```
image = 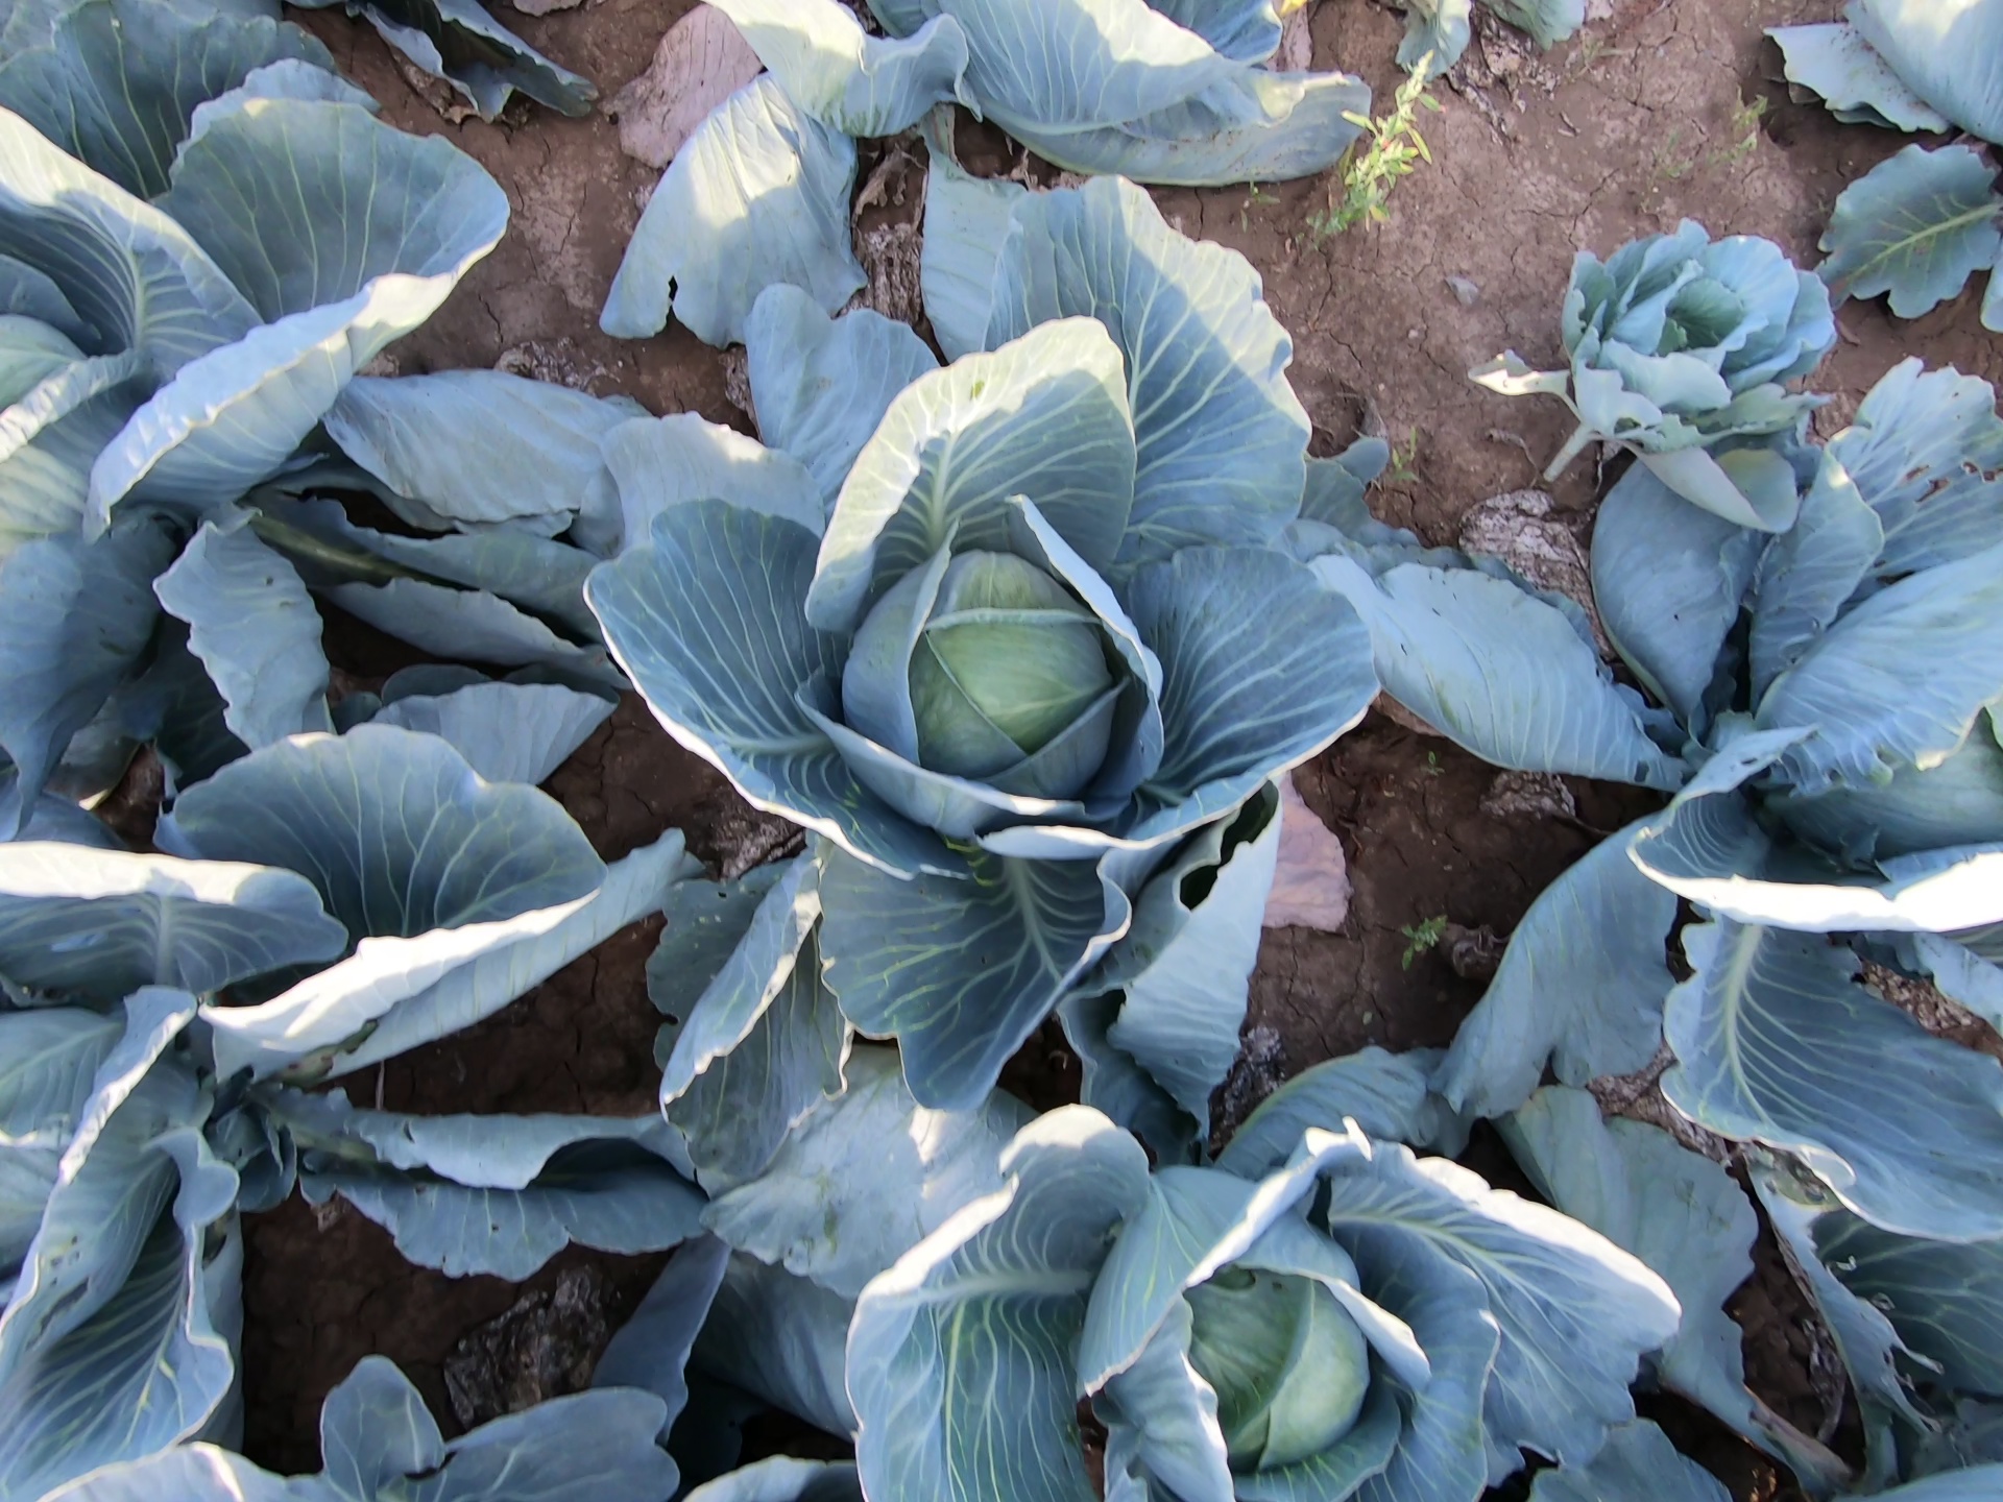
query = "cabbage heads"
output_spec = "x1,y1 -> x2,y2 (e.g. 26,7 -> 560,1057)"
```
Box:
895,548 -> 1113,807
1139,1226 -> 1369,1469
1789,610 -> 1999,852
4,1013 -> 171,1280
0,320 -> 120,597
